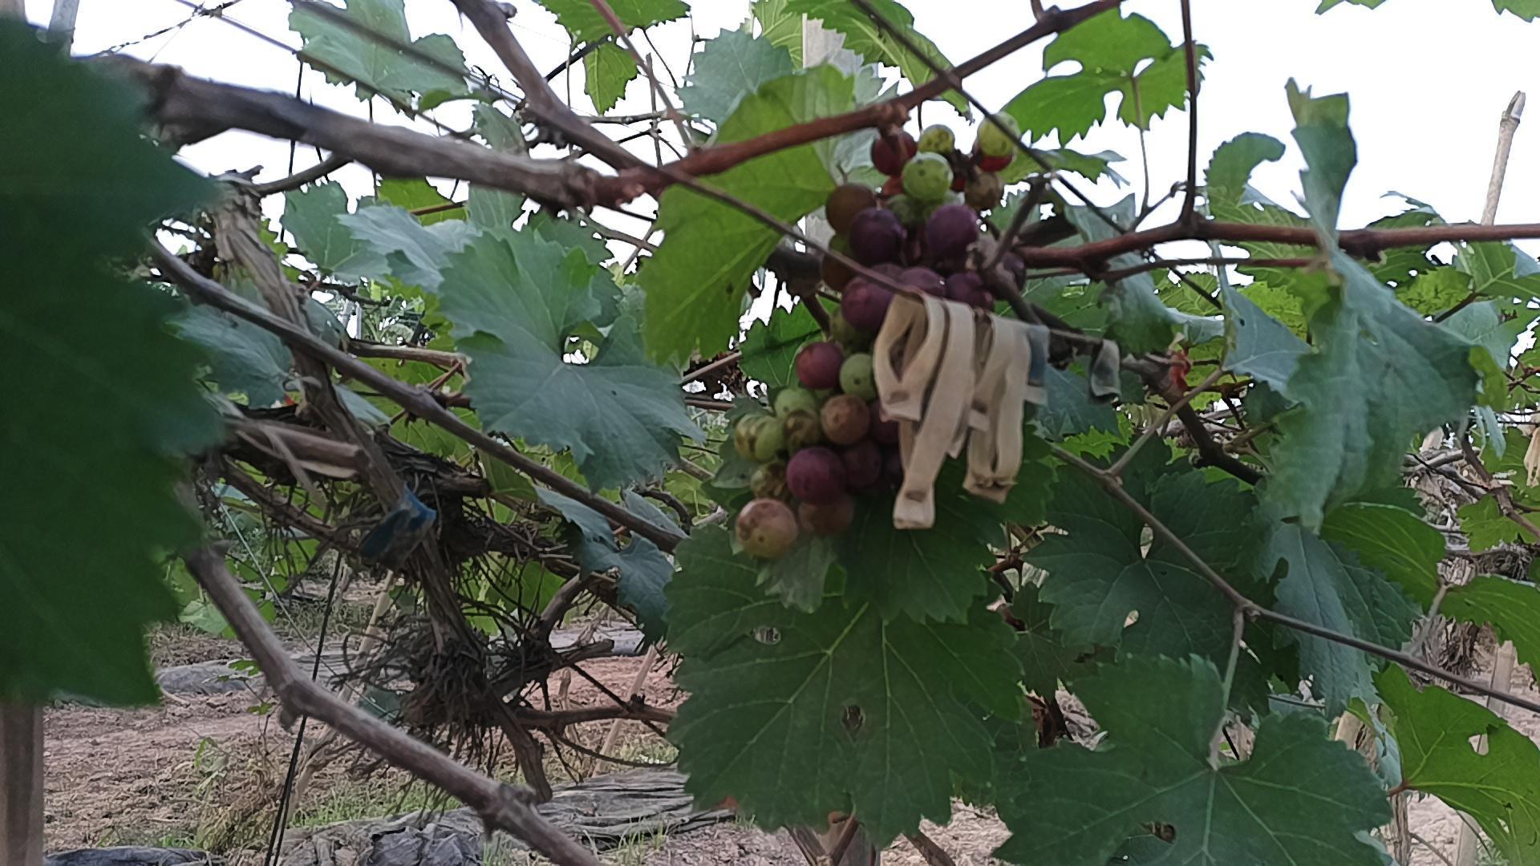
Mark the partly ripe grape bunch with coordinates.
[733,114,1025,559]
